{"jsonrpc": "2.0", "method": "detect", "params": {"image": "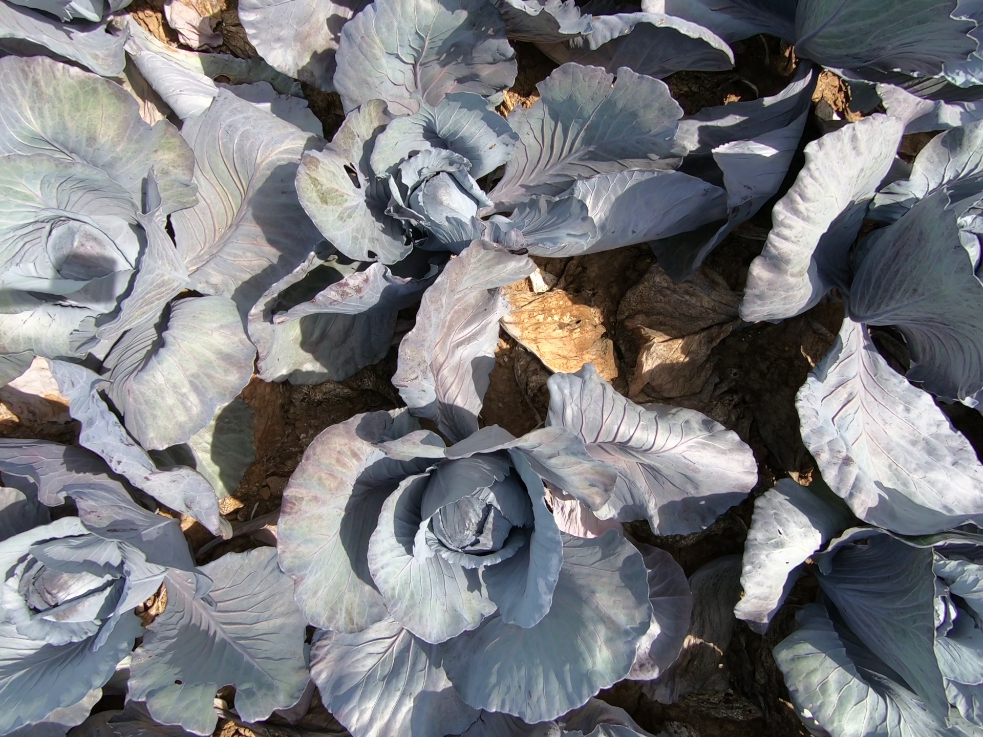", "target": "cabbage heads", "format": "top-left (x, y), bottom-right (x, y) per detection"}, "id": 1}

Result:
top-left (430, 469), bottom-right (521, 555)
top-left (25, 534), bottom-right (158, 621)
top-left (871, 219), bottom-right (982, 328)
top-left (877, 571), bottom-right (957, 634)
top-left (409, 173), bottom-right (479, 235)
top-left (50, 215), bottom-right (170, 301)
